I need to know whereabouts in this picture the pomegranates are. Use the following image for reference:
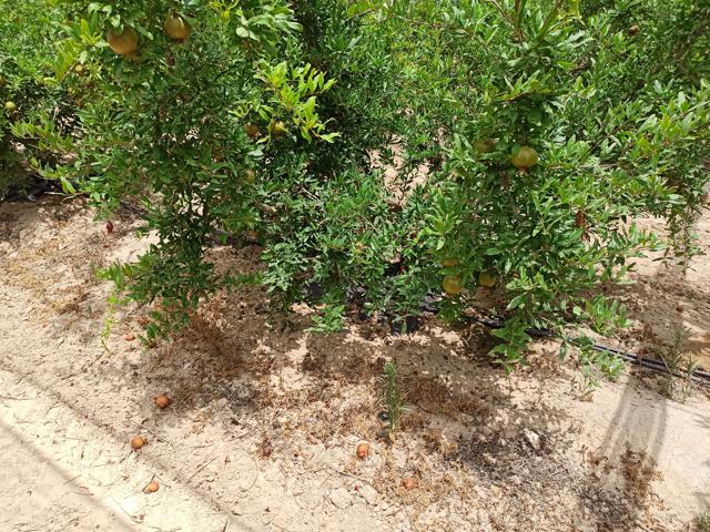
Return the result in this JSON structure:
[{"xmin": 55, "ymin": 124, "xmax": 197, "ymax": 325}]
[
  {"xmin": 163, "ymin": 14, "xmax": 187, "ymax": 43},
  {"xmin": 272, "ymin": 120, "xmax": 284, "ymax": 140},
  {"xmin": 244, "ymin": 124, "xmax": 258, "ymax": 139},
  {"xmin": 4, "ymin": 100, "xmax": 18, "ymax": 112},
  {"xmin": 511, "ymin": 145, "xmax": 539, "ymax": 176},
  {"xmin": 442, "ymin": 275, "xmax": 463, "ymax": 298},
  {"xmin": 478, "ymin": 273, "xmax": 496, "ymax": 291},
  {"xmin": 246, "ymin": 170, "xmax": 256, "ymax": 183},
  {"xmin": 106, "ymin": 25, "xmax": 139, "ymax": 62},
  {"xmin": 475, "ymin": 140, "xmax": 497, "ymax": 153}
]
